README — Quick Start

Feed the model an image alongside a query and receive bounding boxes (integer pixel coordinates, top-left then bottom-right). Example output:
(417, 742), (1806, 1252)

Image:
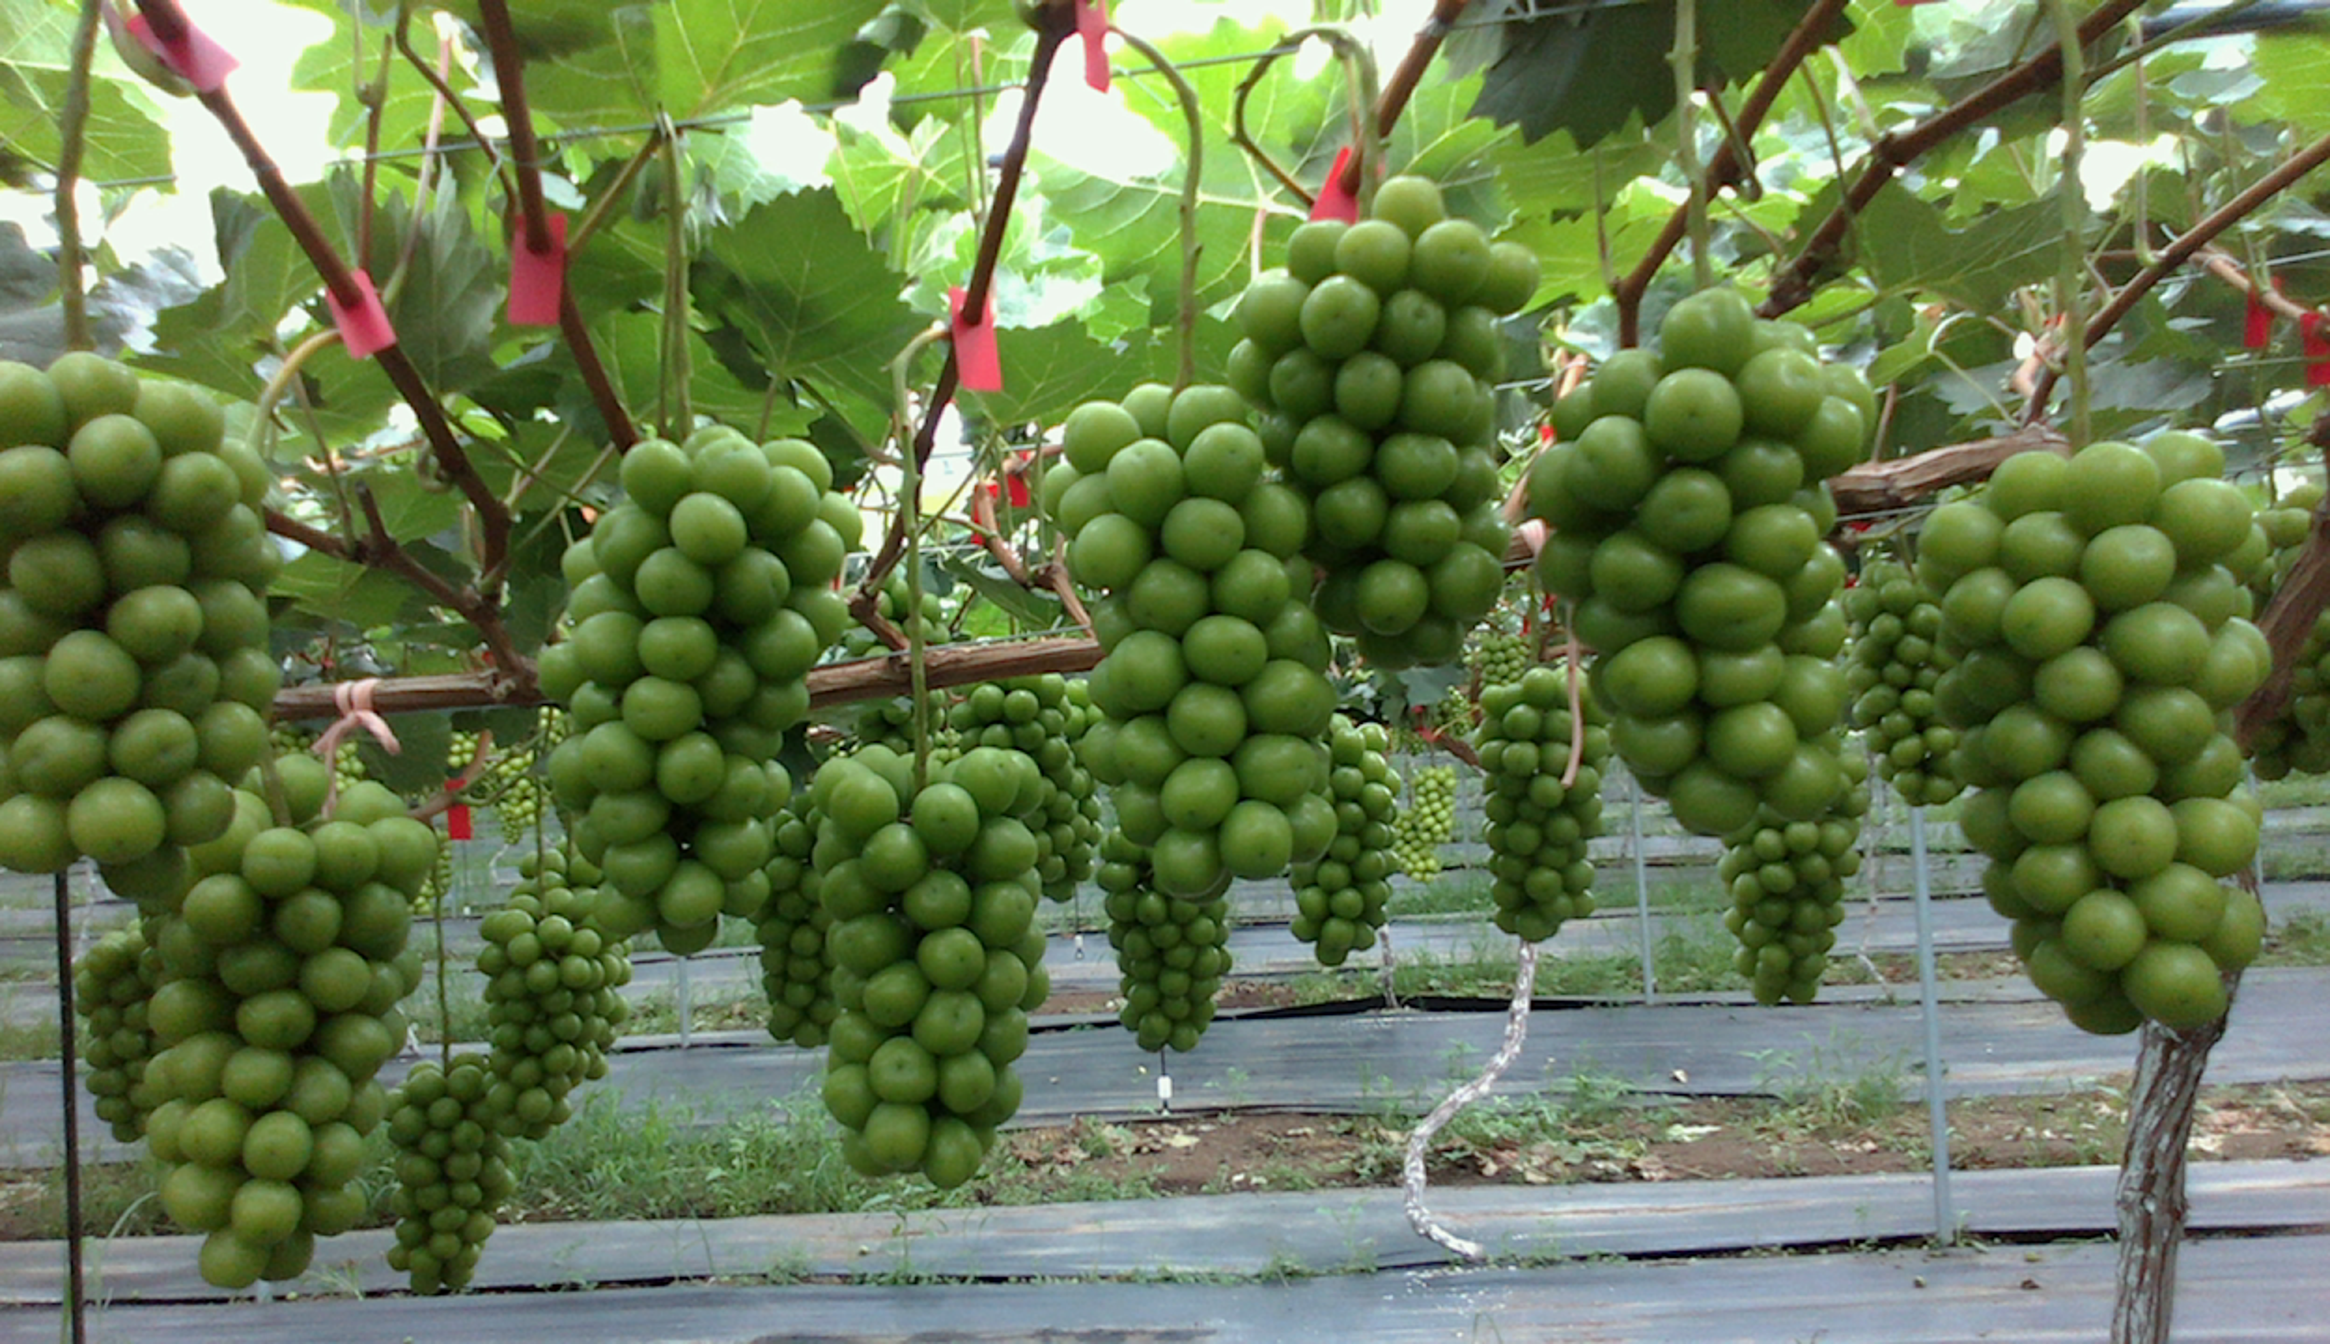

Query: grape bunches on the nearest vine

(1042, 383), (1340, 896)
(1914, 429), (2274, 1034)
(2, 353), (286, 898)
(532, 424), (864, 952)
(1527, 289), (1874, 838)
(140, 758), (439, 1288)
(812, 743), (1049, 1189)
(1228, 175), (1540, 670)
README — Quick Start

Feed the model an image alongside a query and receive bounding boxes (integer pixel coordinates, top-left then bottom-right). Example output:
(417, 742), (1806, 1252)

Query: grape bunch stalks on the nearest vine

(1107, 21), (1202, 392)
(1665, 2), (1712, 289)
(1232, 26), (1378, 222)
(657, 114), (693, 441)
(891, 319), (950, 797)
(58, 0), (103, 349)
(2046, 0), (2093, 454)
